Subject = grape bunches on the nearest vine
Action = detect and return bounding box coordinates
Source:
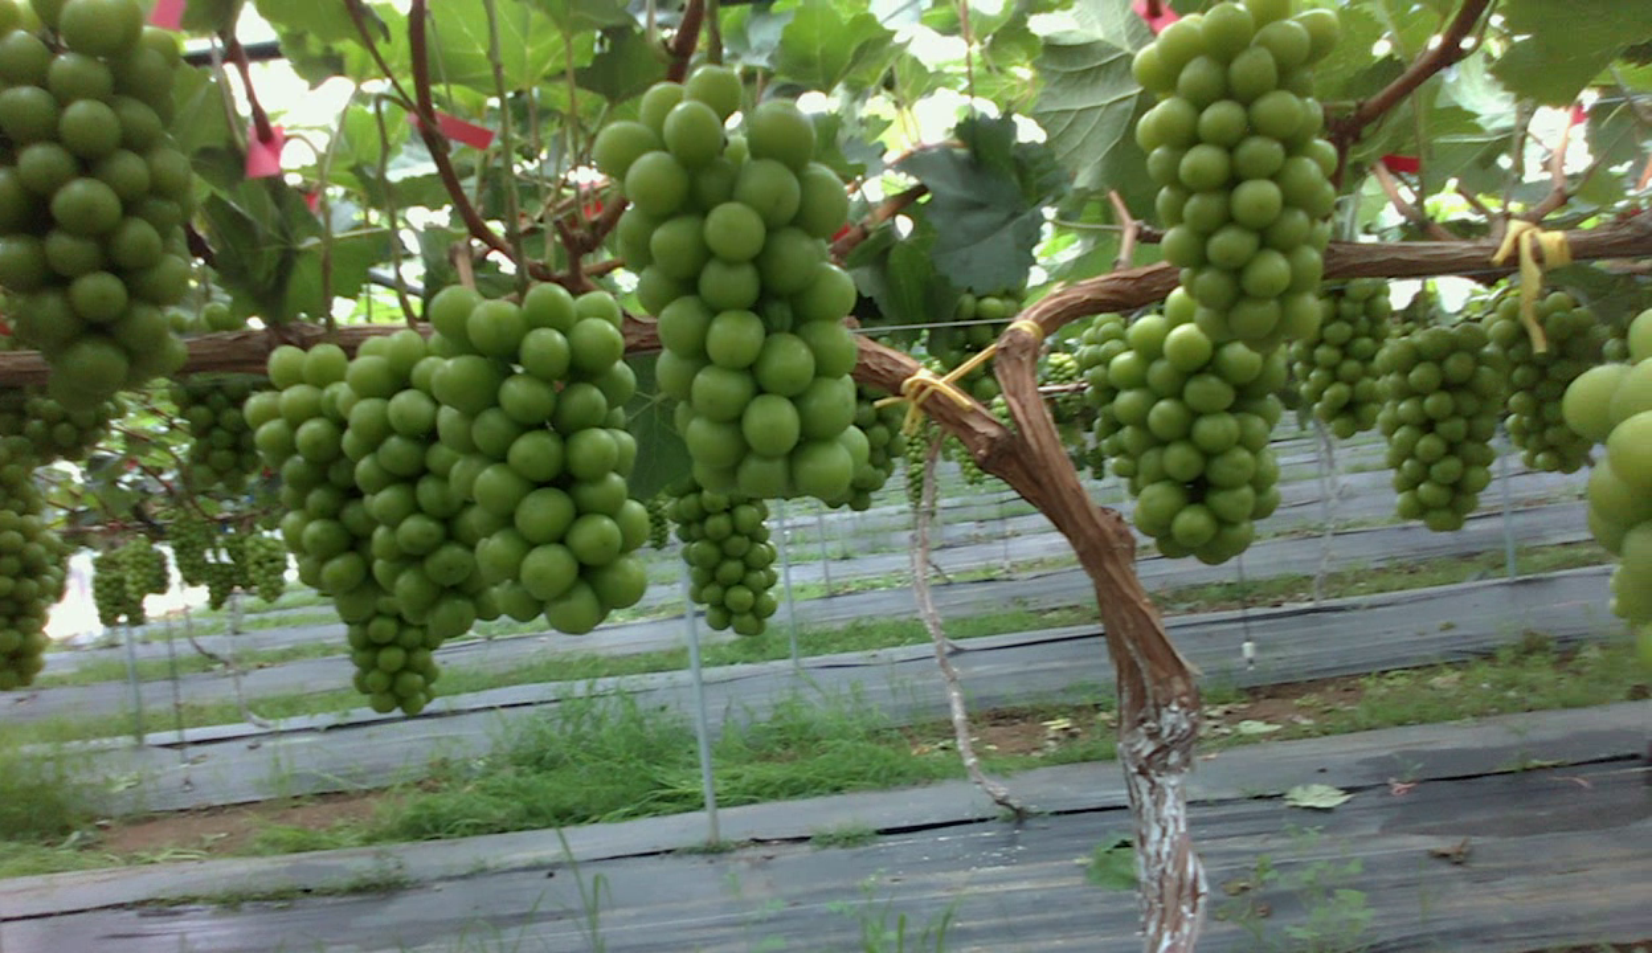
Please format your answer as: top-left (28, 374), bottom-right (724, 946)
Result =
top-left (1563, 307), bottom-right (1651, 621)
top-left (0, 0), bottom-right (193, 409)
top-left (428, 283), bottom-right (654, 634)
top-left (1132, 0), bottom-right (1338, 356)
top-left (335, 328), bottom-right (503, 639)
top-left (589, 66), bottom-right (867, 500)
top-left (1109, 287), bottom-right (1287, 565)
top-left (245, 344), bottom-right (390, 627)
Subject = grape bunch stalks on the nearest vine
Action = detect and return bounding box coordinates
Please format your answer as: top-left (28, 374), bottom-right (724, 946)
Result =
top-left (704, 0), bottom-right (723, 64)
top-left (483, 0), bottom-right (532, 298)
top-left (376, 93), bottom-right (417, 328)
top-left (1214, 0), bottom-right (1223, 4)
top-left (290, 134), bottom-right (335, 340)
